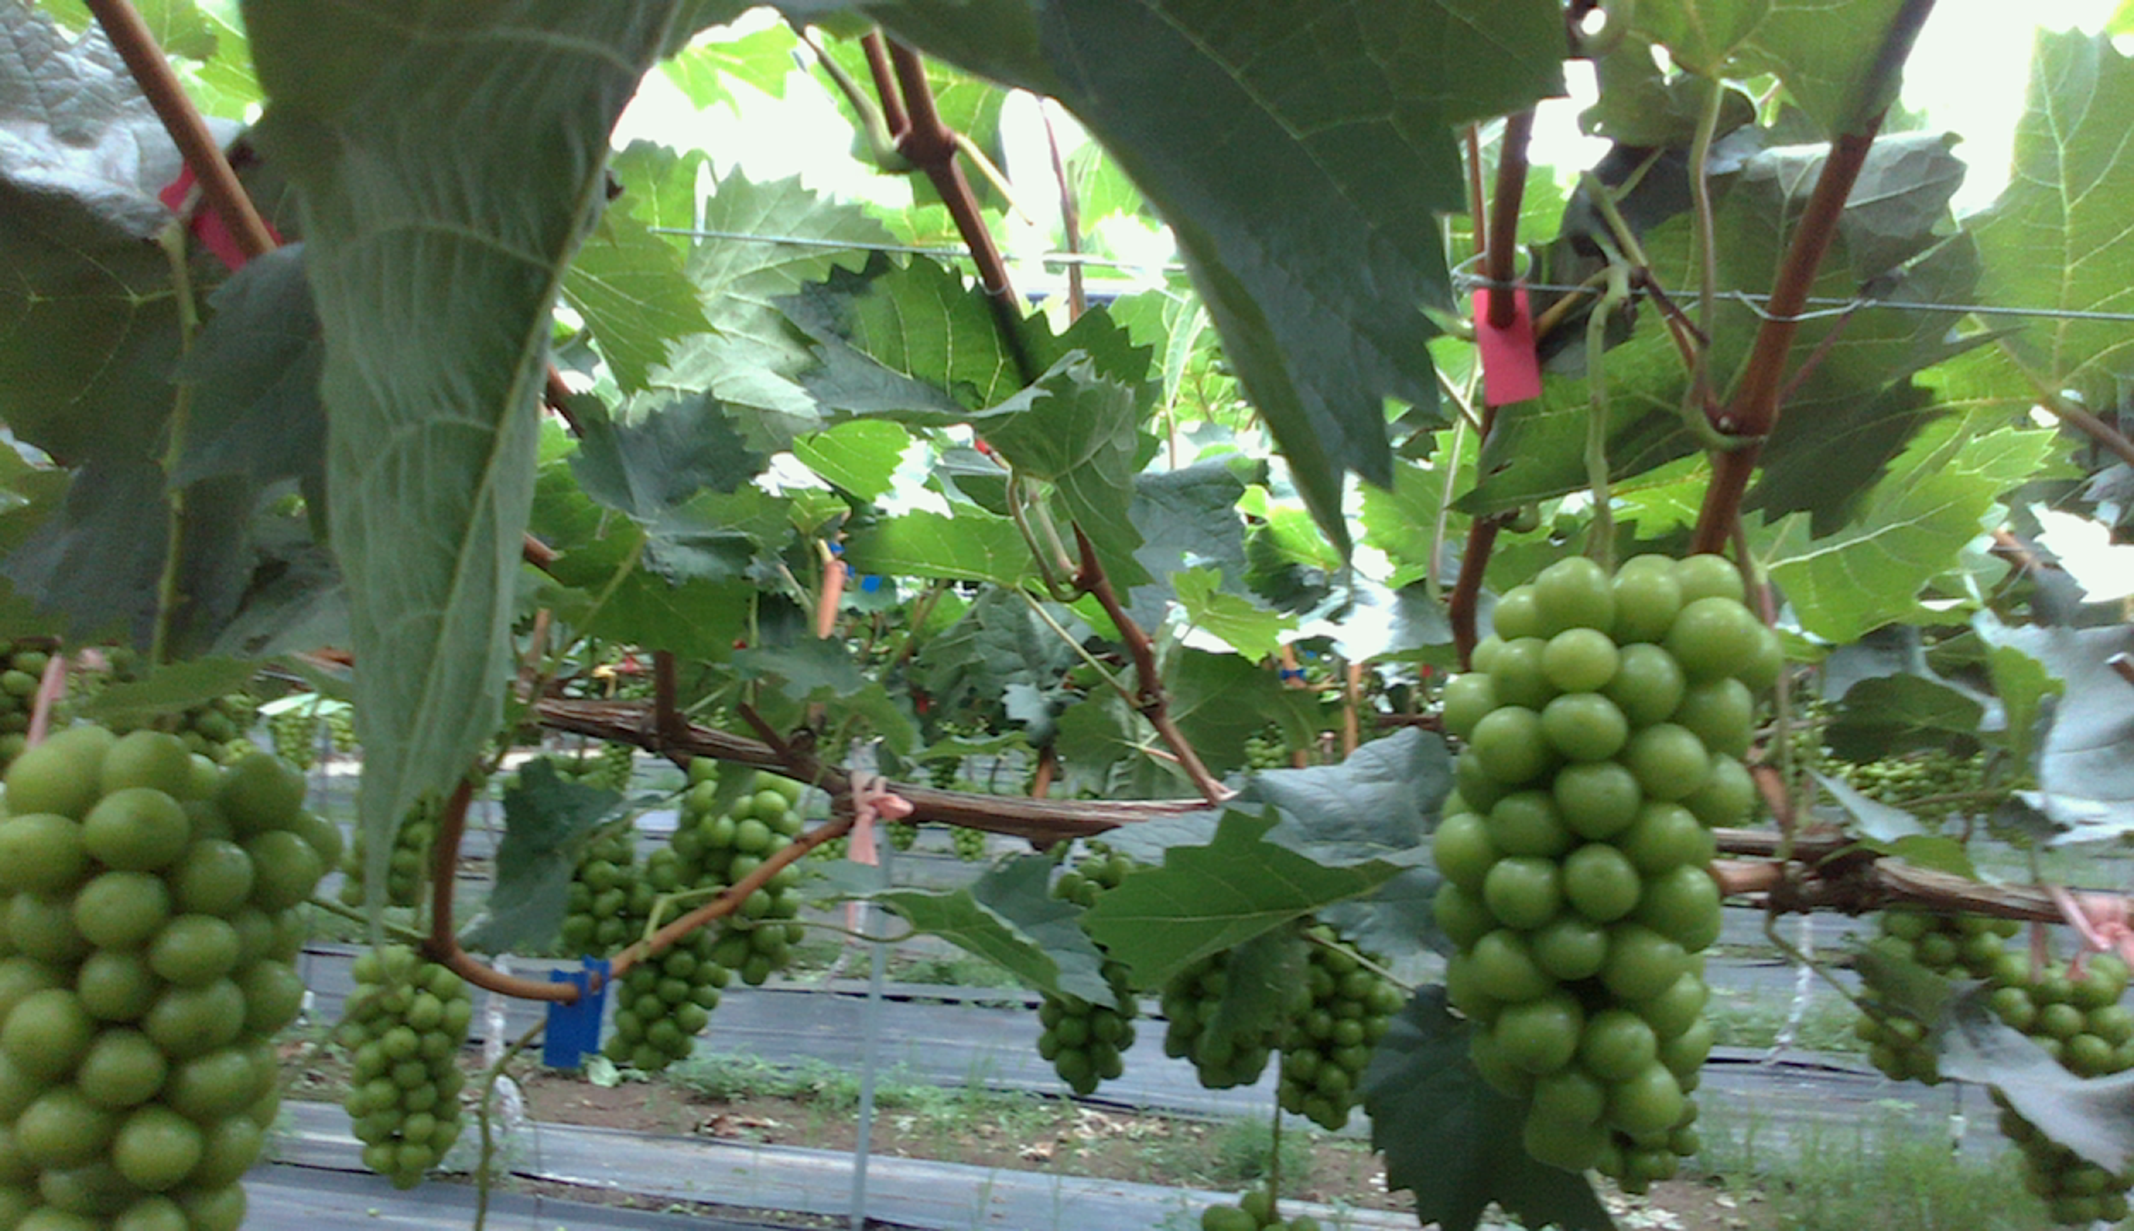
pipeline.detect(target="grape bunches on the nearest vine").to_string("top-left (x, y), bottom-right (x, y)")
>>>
top-left (0, 725), bottom-right (339, 1229)
top-left (1433, 552), bottom-right (1782, 1176)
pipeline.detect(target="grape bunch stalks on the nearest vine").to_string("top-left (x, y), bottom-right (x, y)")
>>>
top-left (1585, 268), bottom-right (1630, 576)
top-left (133, 181), bottom-right (202, 732)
